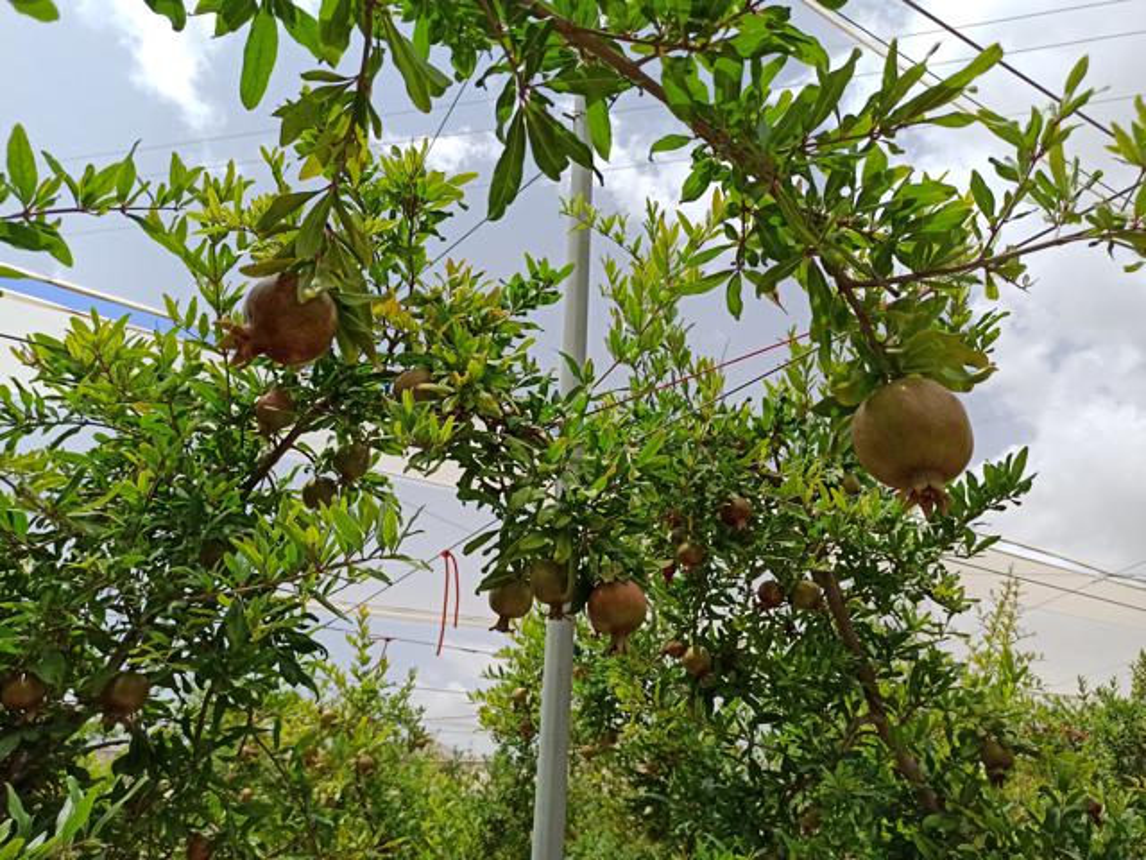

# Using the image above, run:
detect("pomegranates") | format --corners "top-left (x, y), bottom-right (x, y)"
top-left (319, 709), bottom-right (340, 727)
top-left (682, 645), bottom-right (713, 683)
top-left (0, 670), bottom-right (52, 727)
top-left (675, 539), bottom-right (706, 568)
top-left (587, 580), bottom-right (646, 658)
top-left (303, 477), bottom-right (337, 509)
top-left (852, 378), bottom-right (976, 520)
top-left (303, 749), bottom-right (329, 772)
top-left (333, 446), bottom-right (371, 486)
top-left (238, 785), bottom-right (254, 803)
top-left (528, 557), bottom-right (568, 620)
top-left (186, 833), bottom-right (213, 860)
top-left (355, 754), bottom-right (376, 778)
top-left (752, 579), bottom-right (786, 616)
top-left (487, 584), bottom-right (534, 632)
top-left (790, 579), bottom-right (827, 613)
top-left (213, 271), bottom-right (340, 371)
top-left (392, 367), bottom-right (432, 401)
top-left (100, 672), bottom-right (150, 731)
top-left (718, 498), bottom-right (752, 534)
top-left (254, 389), bottom-right (294, 435)
top-left (240, 744), bottom-right (260, 758)
top-left (979, 740), bottom-right (1015, 781)
top-left (840, 473), bottom-right (861, 494)
top-left (661, 507), bottom-right (684, 530)
top-left (661, 640), bottom-right (688, 658)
